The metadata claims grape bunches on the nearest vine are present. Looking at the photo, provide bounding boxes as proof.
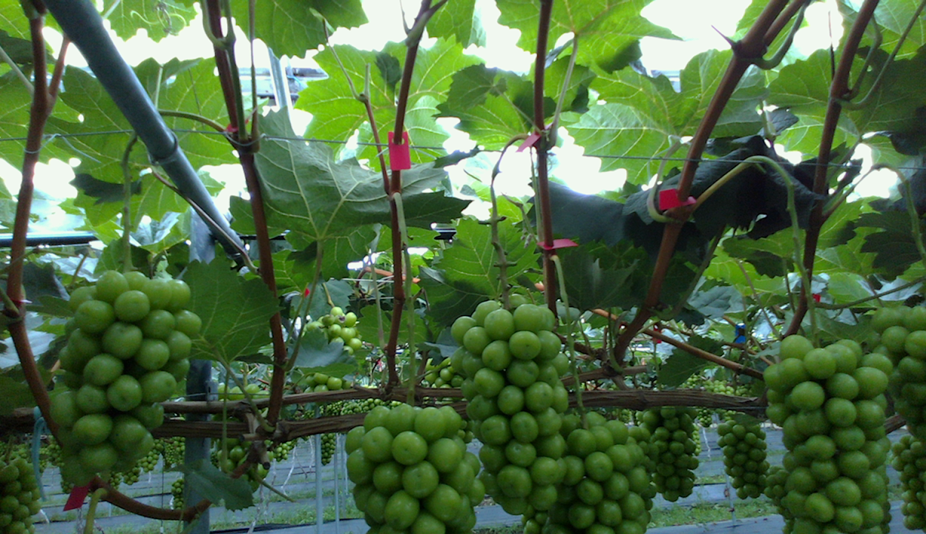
[550,412,651,533]
[50,271,203,487]
[344,403,485,533]
[764,335,892,533]
[870,306,925,442]
[450,294,570,517]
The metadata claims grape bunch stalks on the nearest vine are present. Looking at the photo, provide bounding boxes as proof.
[119,133,137,273]
[556,258,588,428]
[827,160,925,267]
[478,134,520,311]
[691,156,820,347]
[393,193,415,405]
